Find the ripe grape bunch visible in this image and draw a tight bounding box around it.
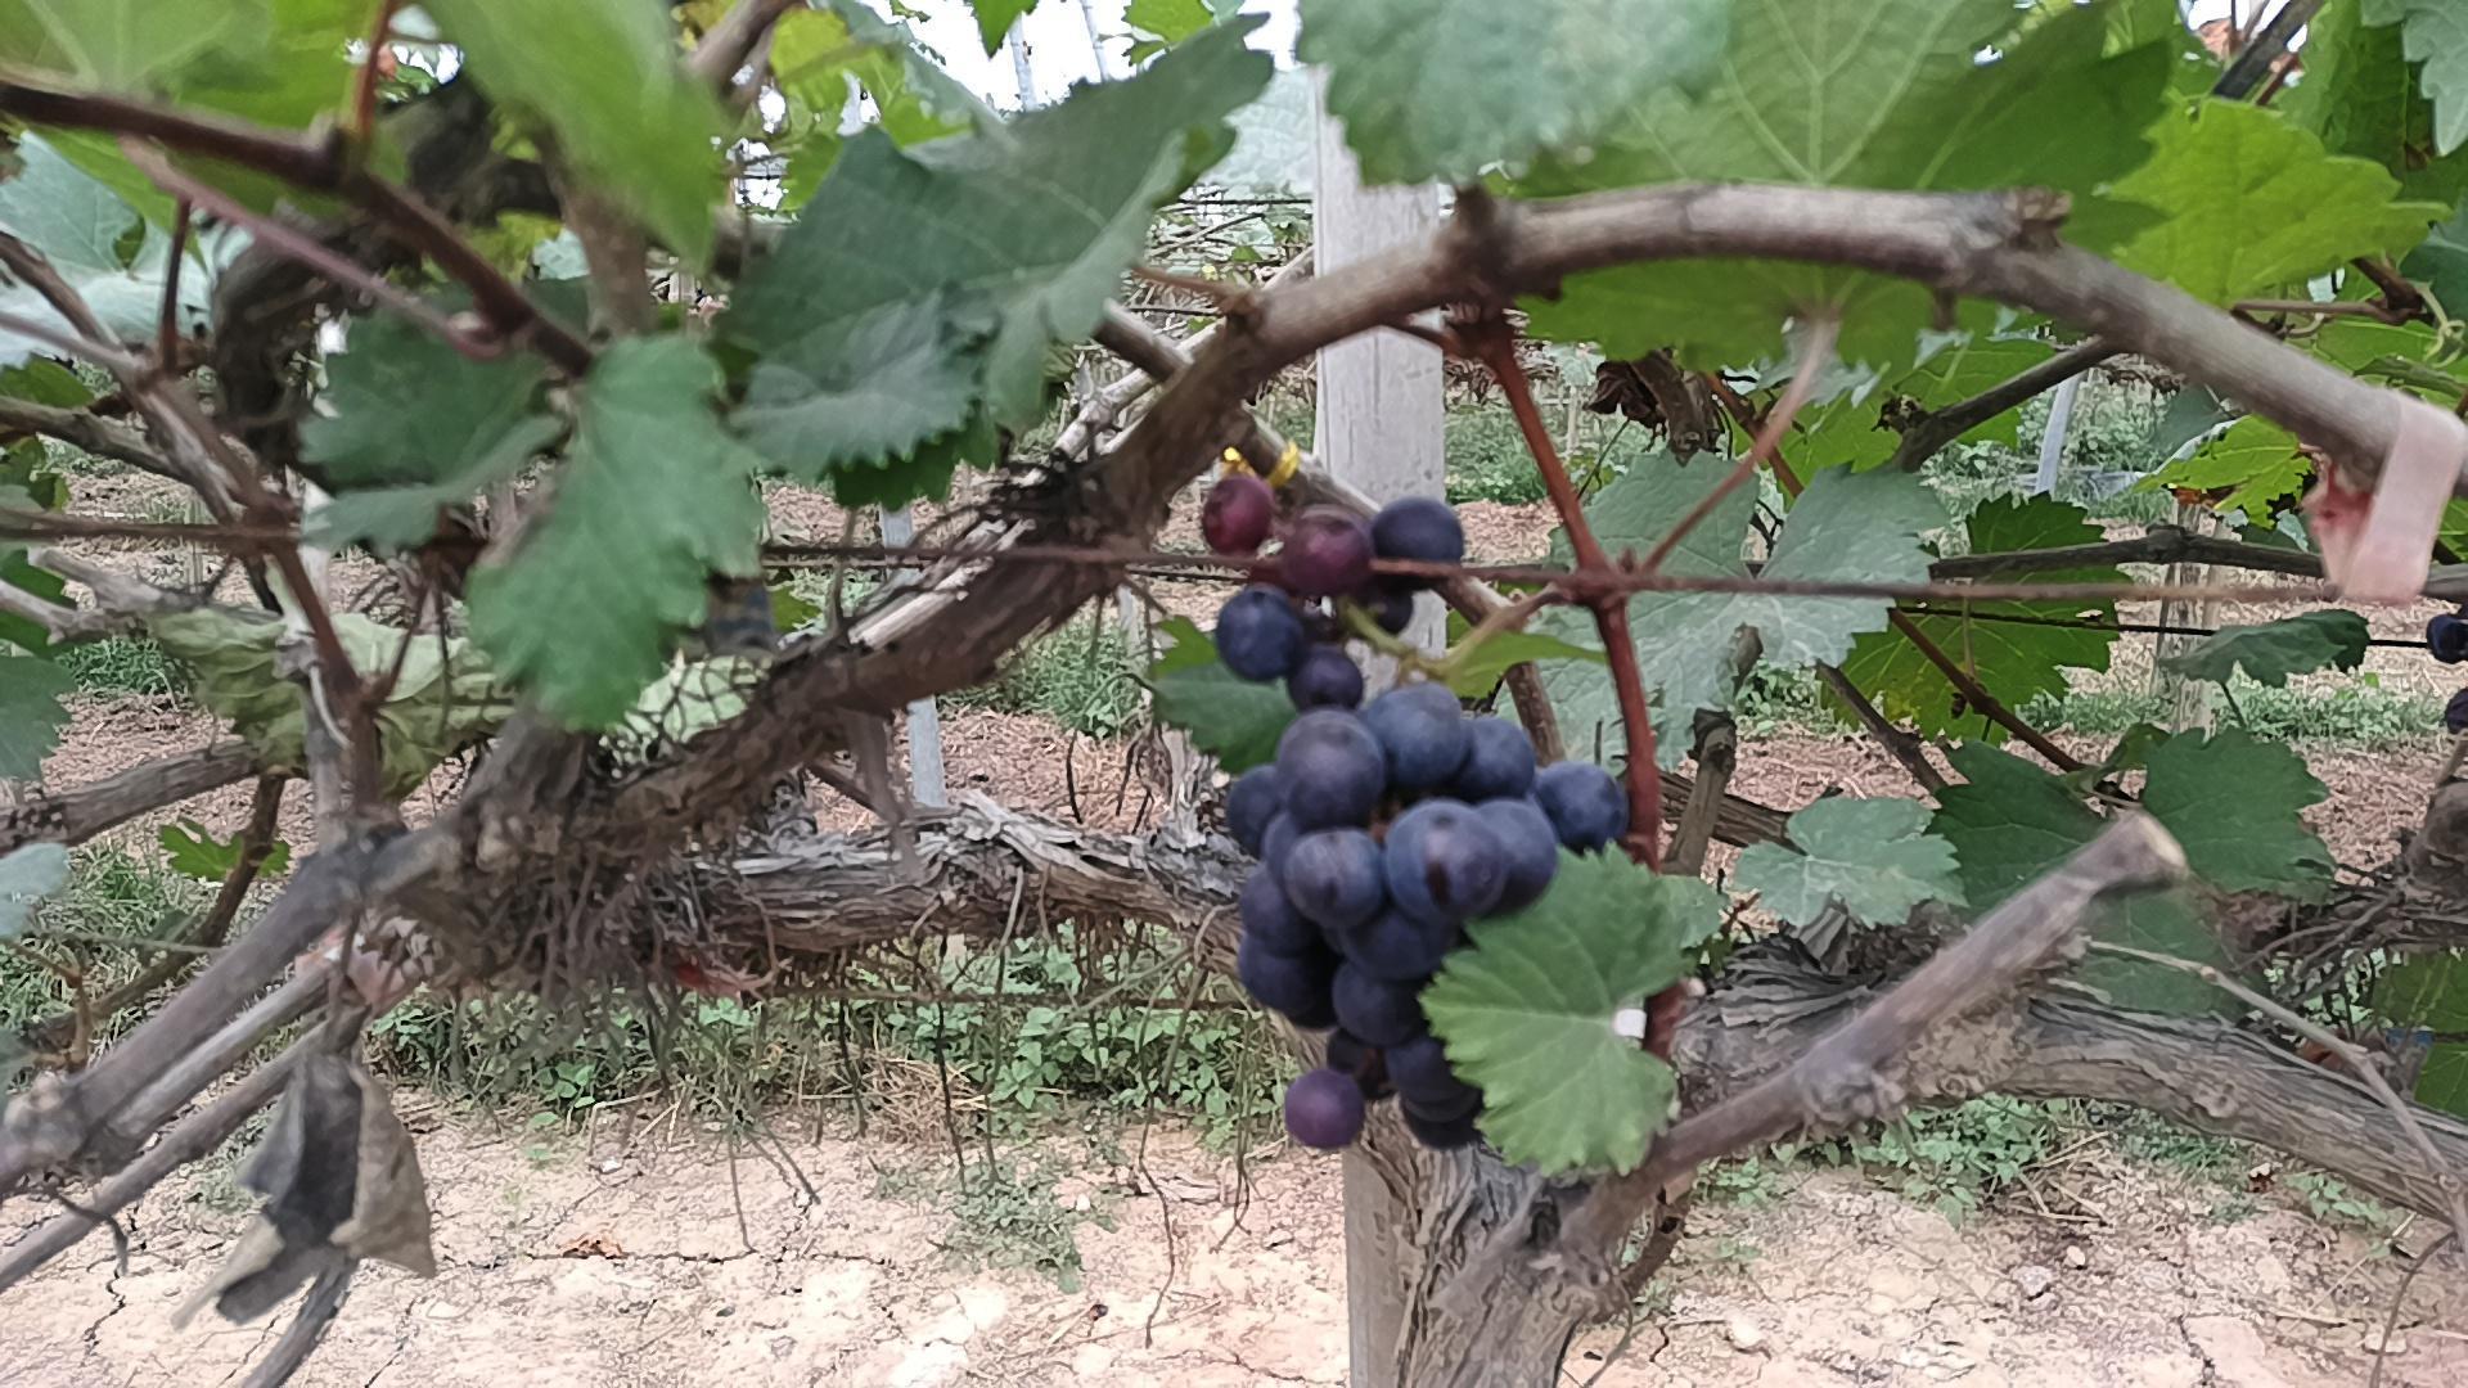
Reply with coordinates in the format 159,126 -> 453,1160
1195,469 -> 1627,1152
